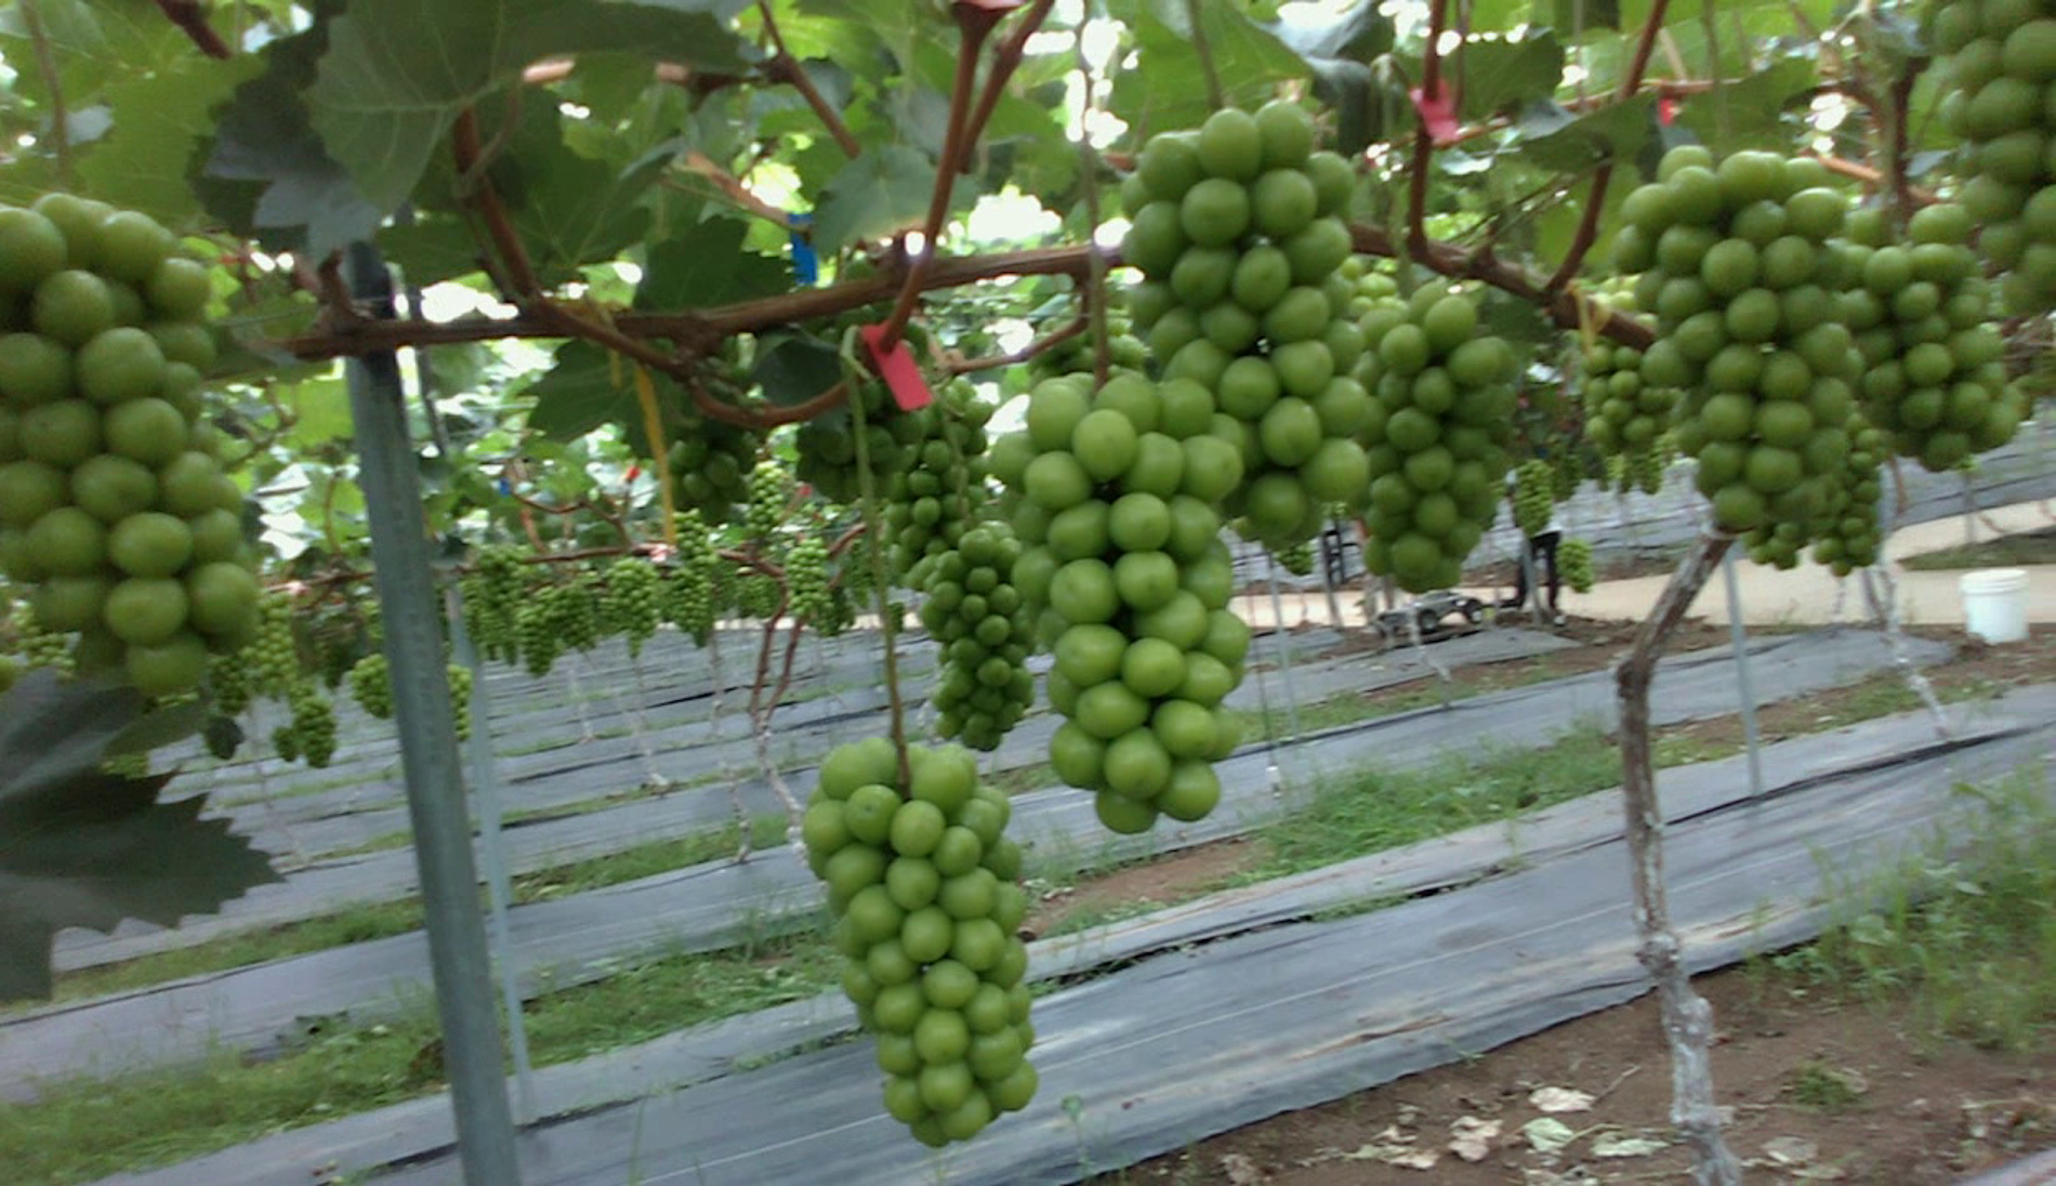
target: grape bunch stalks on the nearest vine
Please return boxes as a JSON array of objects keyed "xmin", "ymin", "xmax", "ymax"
[
  {"xmin": 1379, "ymin": 53, "xmax": 1412, "ymax": 293},
  {"xmin": 18, "ymin": 3, "xmax": 77, "ymax": 189},
  {"xmin": 1703, "ymin": 2, "xmax": 1727, "ymax": 153},
  {"xmin": 1868, "ymin": 82, "xmax": 1899, "ymax": 236},
  {"xmin": 842, "ymin": 328, "xmax": 913, "ymax": 801},
  {"xmin": 1082, "ymin": 142, "xmax": 1112, "ymax": 385},
  {"xmin": 1188, "ymin": 0, "xmax": 1224, "ymax": 104}
]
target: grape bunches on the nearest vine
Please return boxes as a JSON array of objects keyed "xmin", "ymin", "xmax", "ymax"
[
  {"xmin": 1608, "ymin": 142, "xmax": 1855, "ymax": 540},
  {"xmin": 806, "ymin": 738, "xmax": 1043, "ymax": 1150},
  {"xmin": 1119, "ymin": 100, "xmax": 1381, "ymax": 547},
  {"xmin": 1835, "ymin": 199, "xmax": 2023, "ymax": 473},
  {"xmin": 1921, "ymin": 3, "xmax": 2054, "ymax": 321},
  {"xmin": 2, "ymin": 194, "xmax": 262, "ymax": 695},
  {"xmin": 992, "ymin": 372, "xmax": 1249, "ymax": 835},
  {"xmin": 1334, "ymin": 287, "xmax": 1516, "ymax": 590}
]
